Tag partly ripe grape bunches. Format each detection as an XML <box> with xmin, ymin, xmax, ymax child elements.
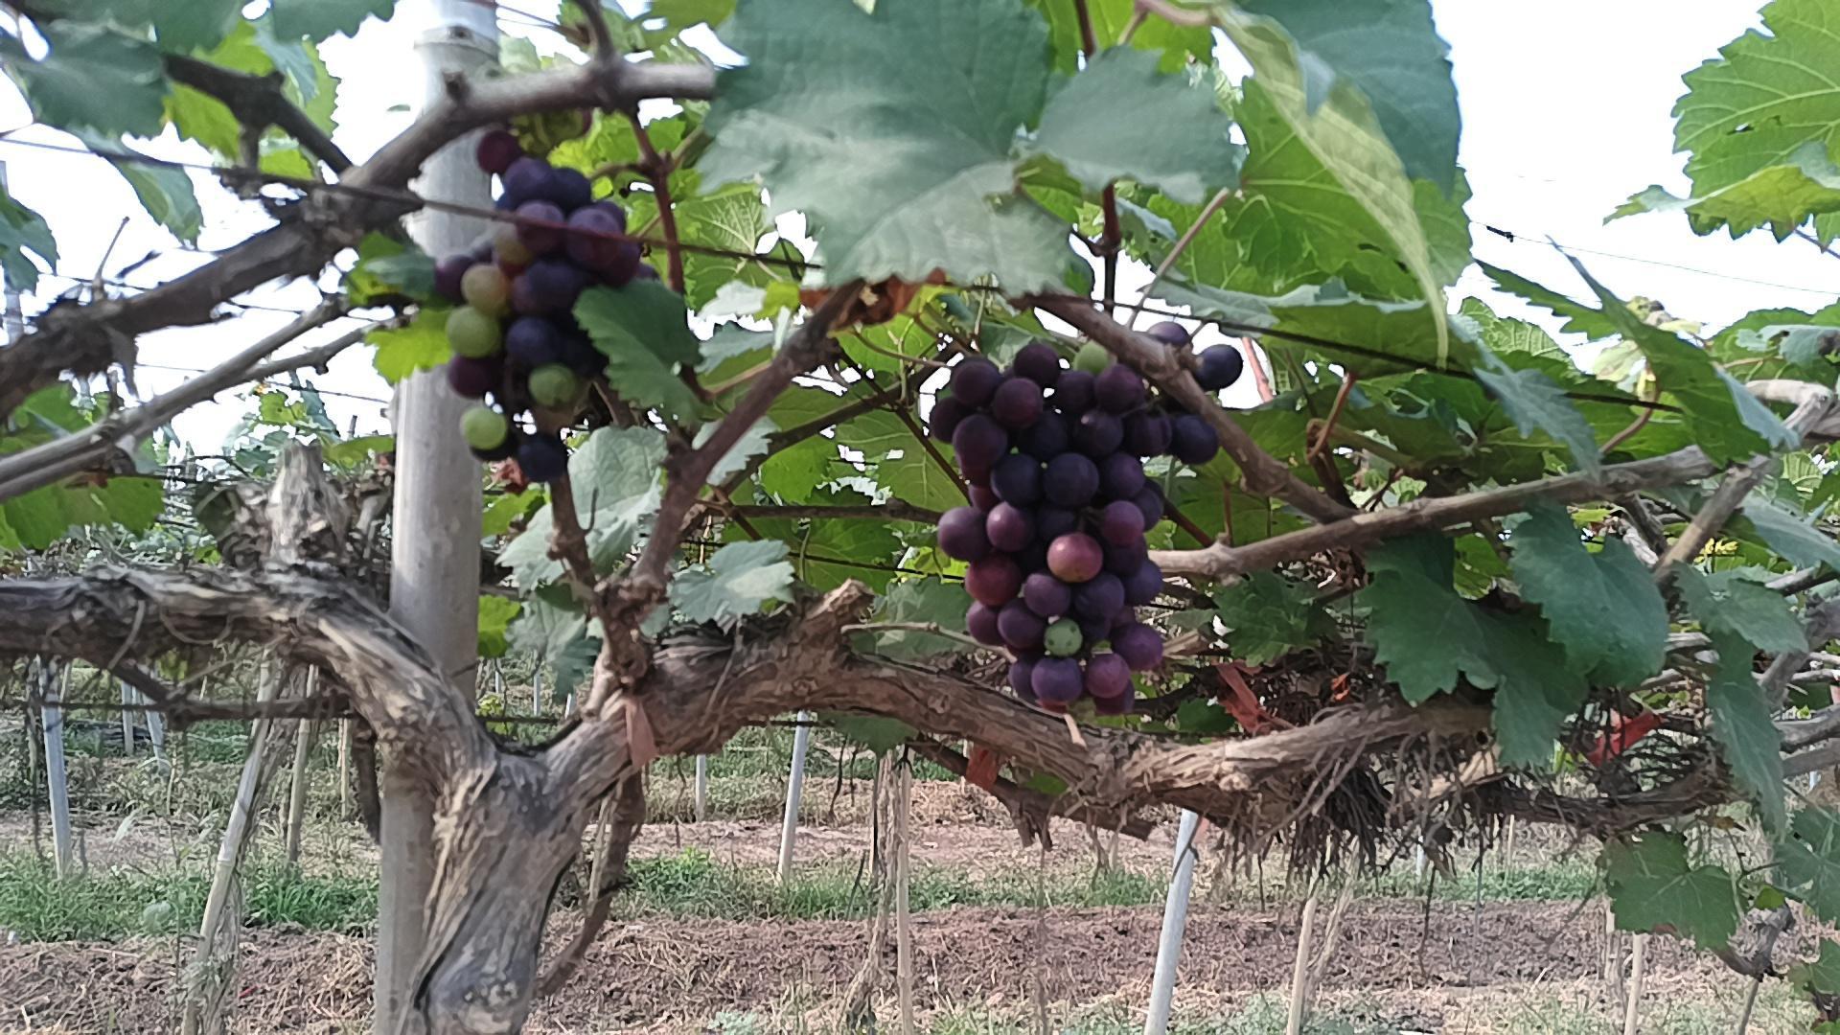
<box><xmin>930</xmin><ymin>322</ymin><xmax>1242</xmax><ymax>713</ymax></box>
<box><xmin>434</xmin><ymin>131</ymin><xmax>659</xmax><ymax>481</ymax></box>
